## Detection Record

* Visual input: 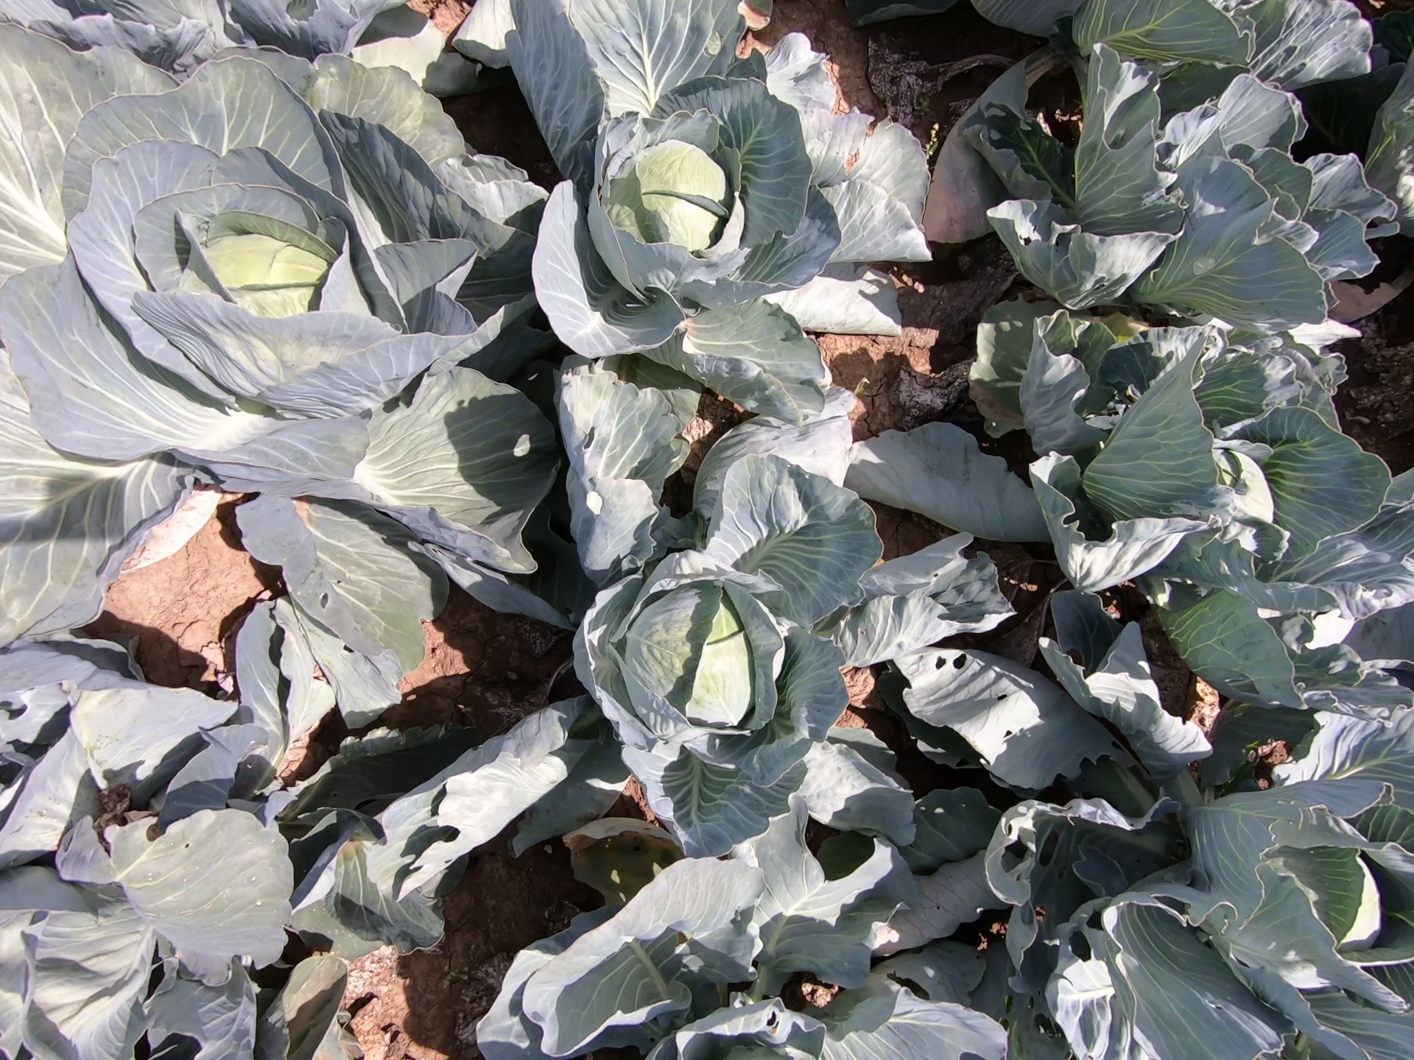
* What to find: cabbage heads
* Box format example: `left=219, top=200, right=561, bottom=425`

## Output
left=1161, top=439, right=1273, bottom=533
left=599, top=138, right=739, bottom=280
left=627, top=585, right=782, bottom=728
left=1212, top=807, right=1385, bottom=975
left=174, top=228, right=353, bottom=391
